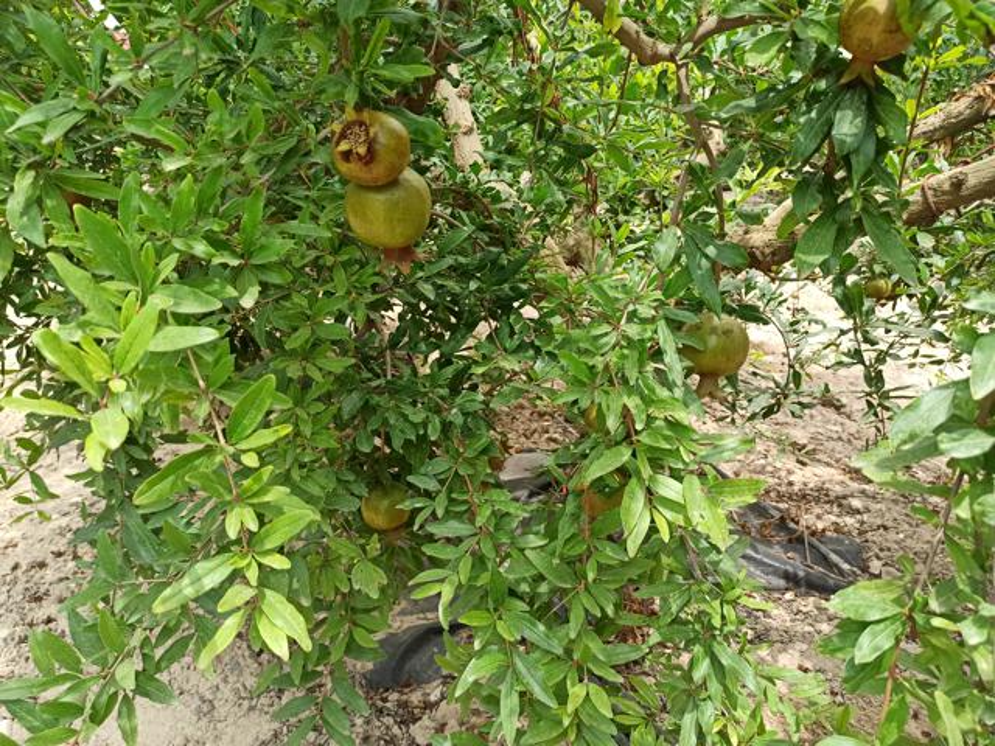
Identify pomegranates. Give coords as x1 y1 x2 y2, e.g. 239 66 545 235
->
864 277 891 300
361 485 412 530
347 165 432 278
681 312 751 401
833 0 923 87
330 106 410 188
